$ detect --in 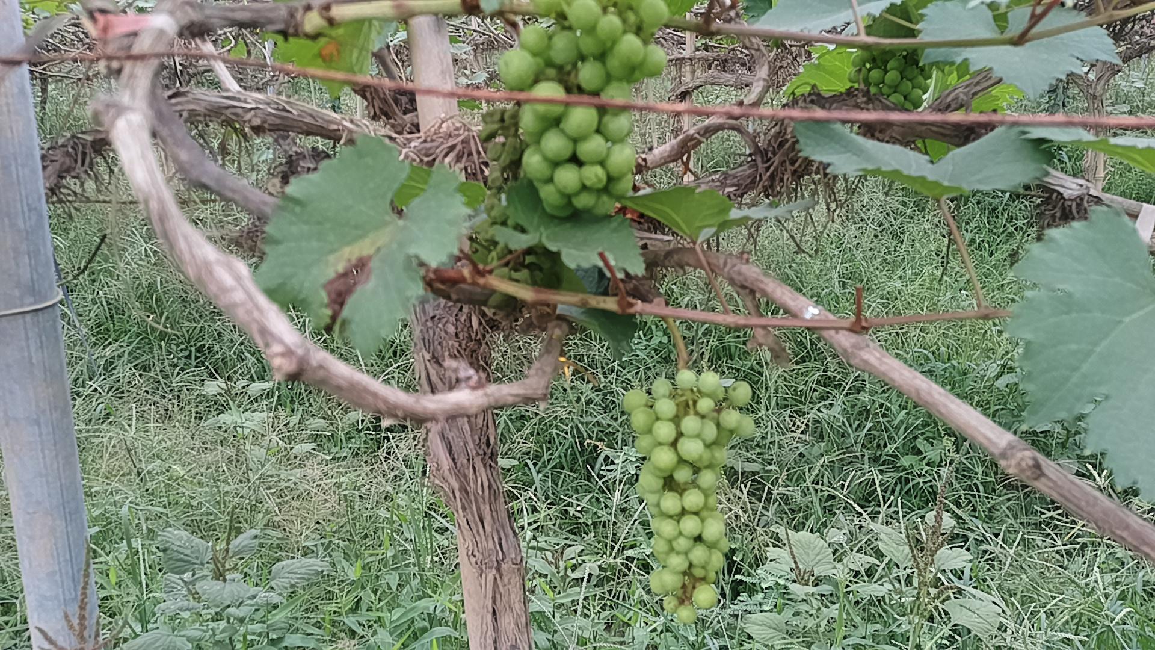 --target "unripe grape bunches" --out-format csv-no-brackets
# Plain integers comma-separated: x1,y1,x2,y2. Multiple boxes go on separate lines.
624,369,753,624
849,51,929,109
500,0,670,217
